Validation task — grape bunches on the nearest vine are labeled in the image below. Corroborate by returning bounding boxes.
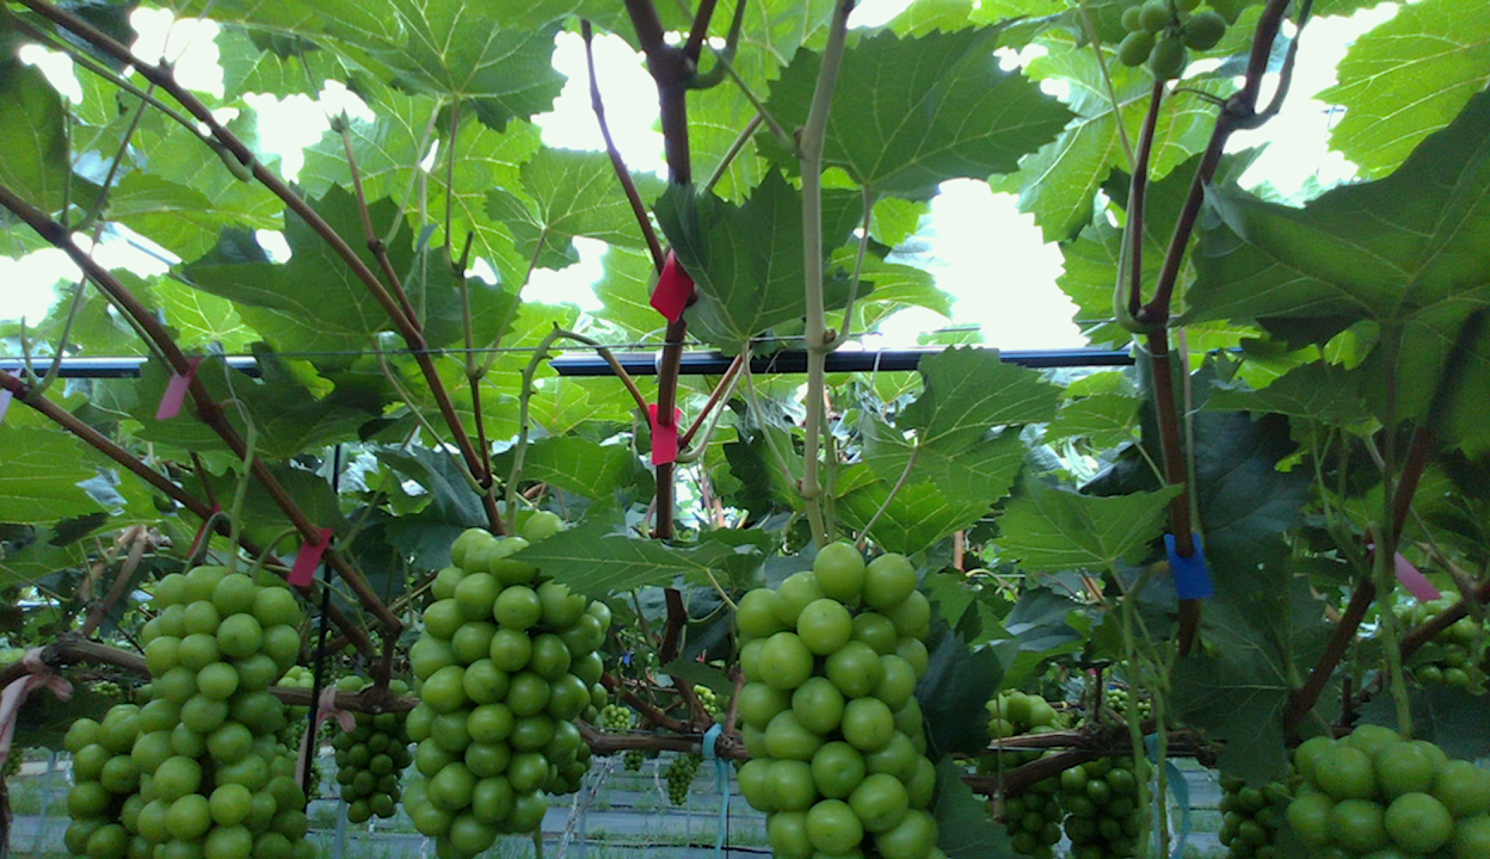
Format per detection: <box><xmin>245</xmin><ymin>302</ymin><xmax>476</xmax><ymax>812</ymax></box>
<box><xmin>131</xmin><ymin>563</ymin><xmax>301</xmax><ymax>858</ymax></box>
<box><xmin>402</xmin><ymin>511</ymin><xmax>607</xmax><ymax>858</ymax></box>
<box><xmin>61</xmin><ymin>703</ymin><xmax>159</xmax><ymax>858</ymax></box>
<box><xmin>1287</xmin><ymin>728</ymin><xmax>1489</xmax><ymax>857</ymax></box>
<box><xmin>734</xmin><ymin>542</ymin><xmax>948</xmax><ymax>858</ymax></box>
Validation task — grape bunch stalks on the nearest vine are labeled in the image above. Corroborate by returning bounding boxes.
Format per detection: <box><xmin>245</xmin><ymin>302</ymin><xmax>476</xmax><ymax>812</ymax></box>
<box><xmin>506</xmin><ymin>322</ymin><xmax>604</xmax><ymax>534</ymax></box>
<box><xmin>223</xmin><ymin>398</ymin><xmax>258</xmax><ymax>574</ymax></box>
<box><xmin>1368</xmin><ymin>521</ymin><xmax>1411</xmax><ymax>741</ymax></box>
<box><xmin>820</xmin><ymin>400</ymin><xmax>837</xmax><ymax>539</ymax></box>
